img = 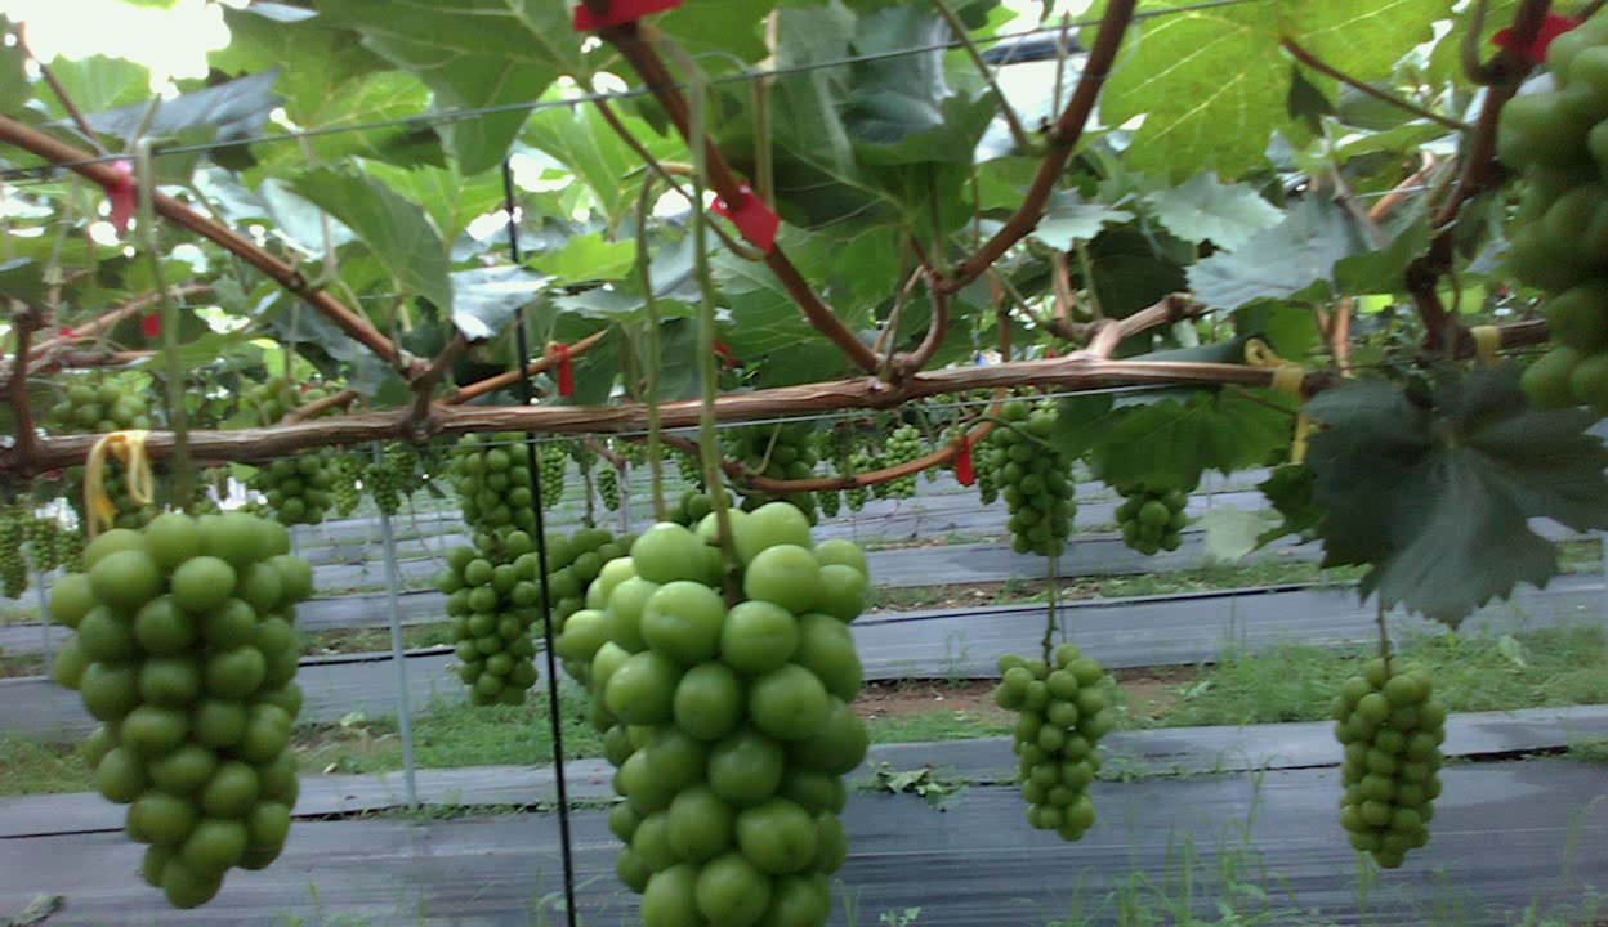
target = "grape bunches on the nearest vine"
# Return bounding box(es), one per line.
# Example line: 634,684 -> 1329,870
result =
600,503 -> 874,924
41,511 -> 316,910
1500,3 -> 1605,411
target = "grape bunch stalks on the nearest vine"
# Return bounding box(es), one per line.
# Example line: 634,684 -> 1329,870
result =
666,41 -> 745,605
133,134 -> 193,511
